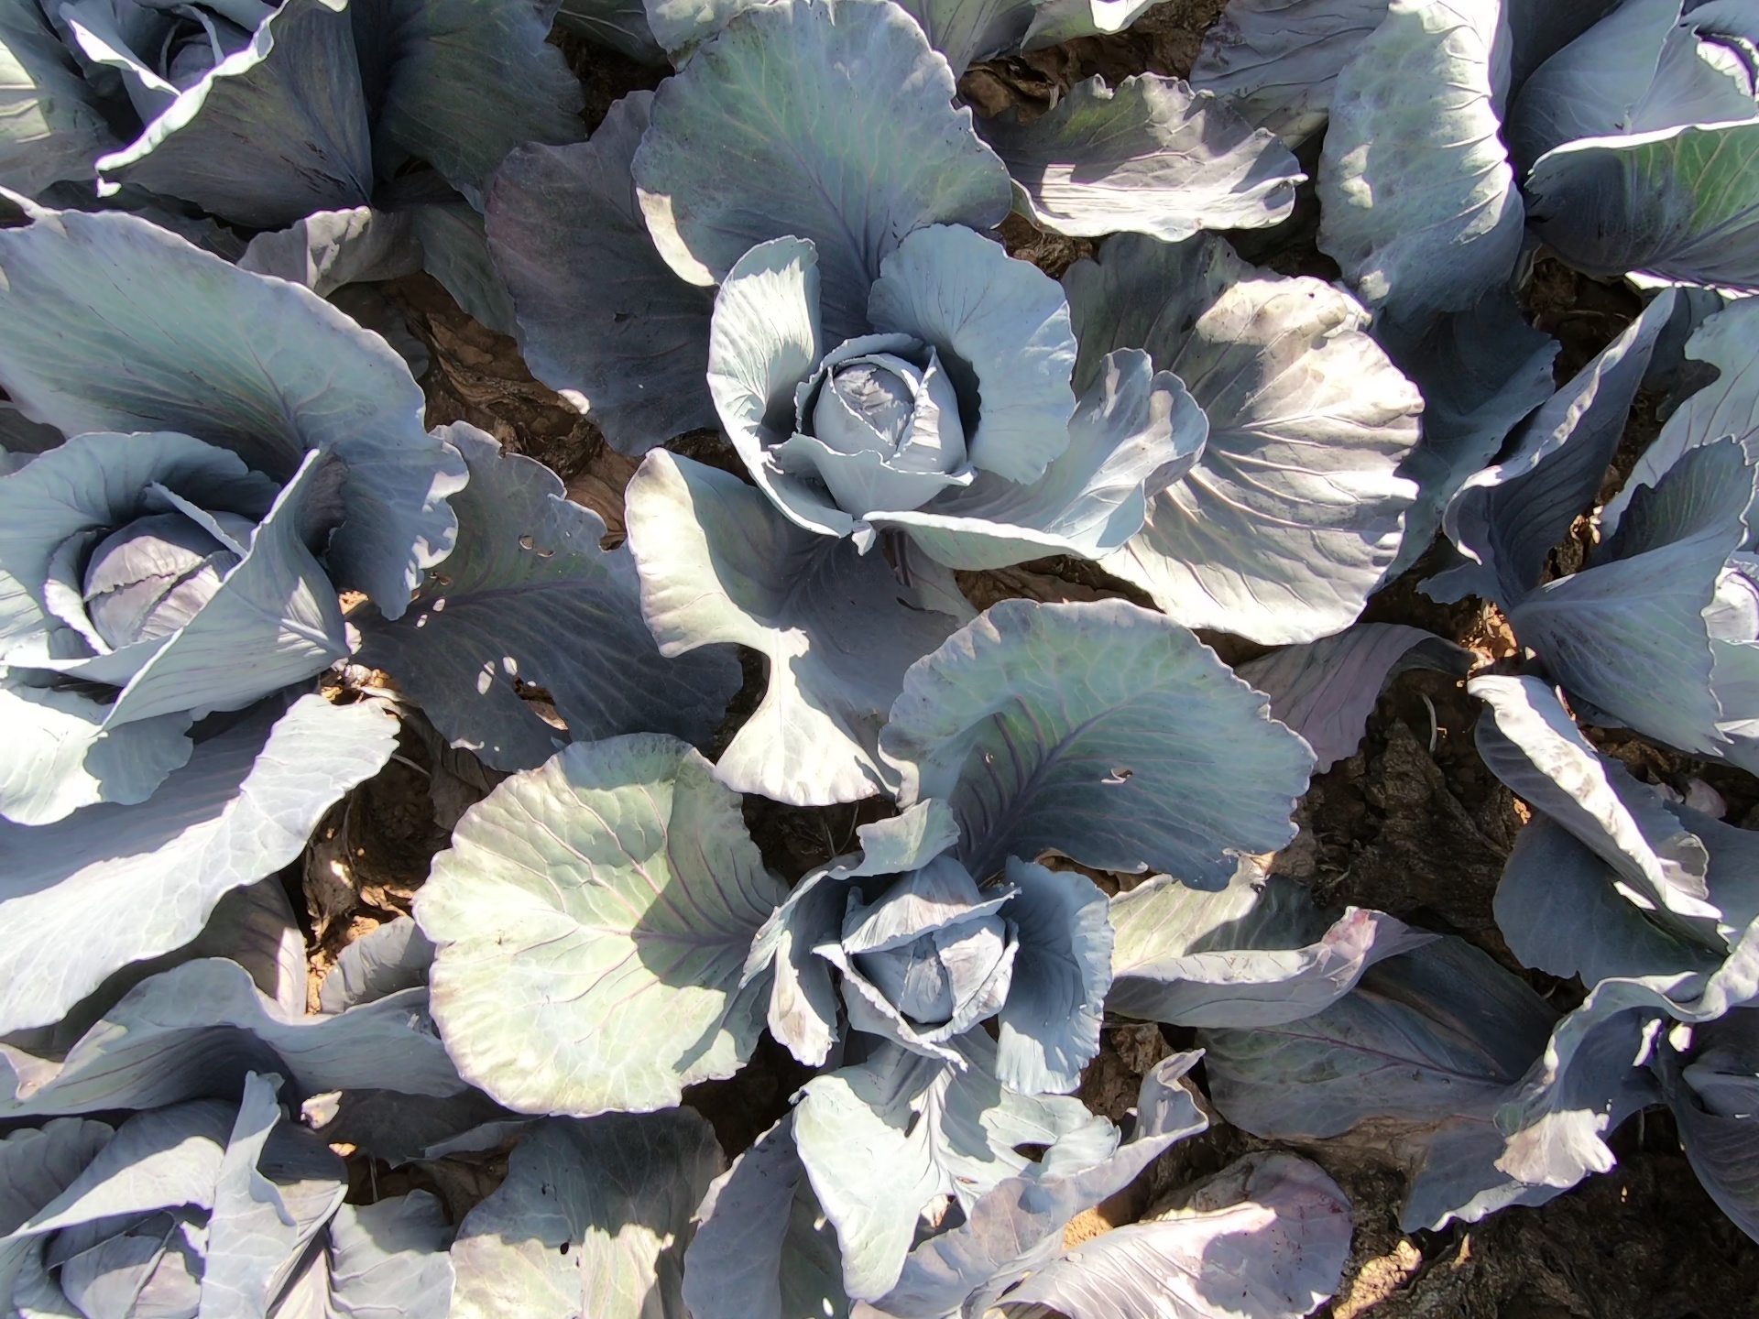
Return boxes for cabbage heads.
[1591,555,1757,688]
[52,1126,293,1319]
[868,880,1011,1027]
[86,514,296,690]
[1616,33,1755,166]
[164,29,298,170]
[817,353,956,485]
